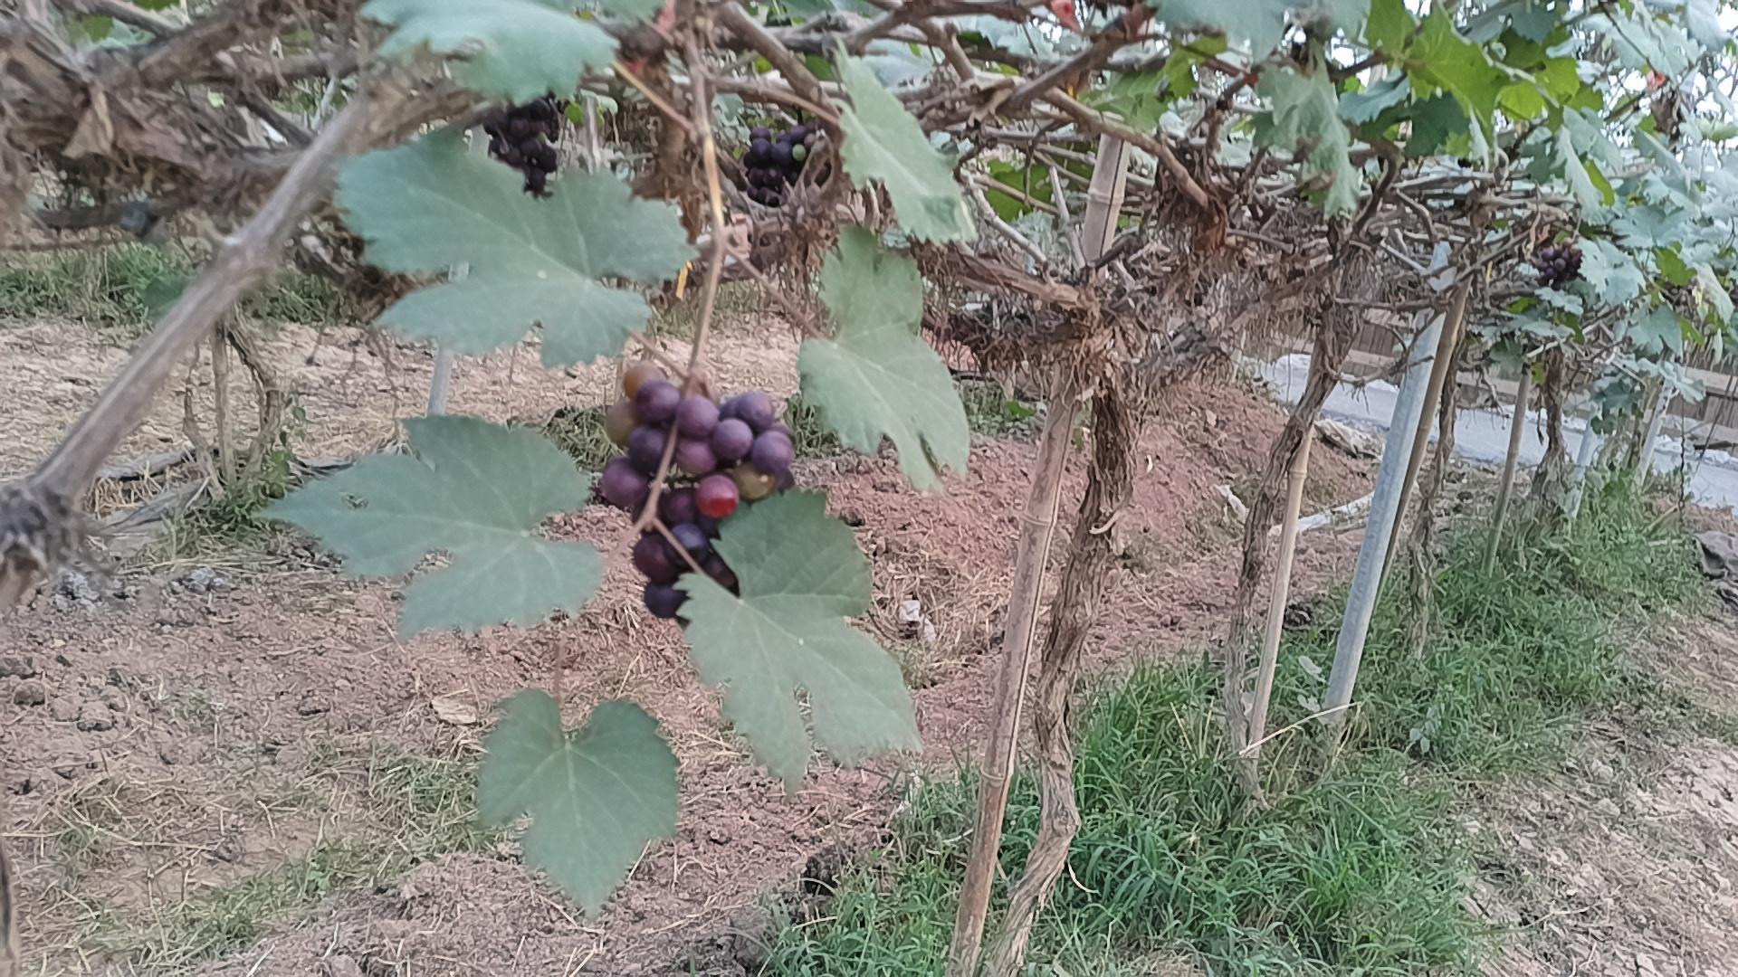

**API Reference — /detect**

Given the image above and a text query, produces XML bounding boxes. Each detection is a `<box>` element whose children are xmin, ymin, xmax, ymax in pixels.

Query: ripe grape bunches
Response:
<box><xmin>481</xmin><ymin>92</ymin><xmax>565</xmax><ymax>196</ymax></box>
<box><xmin>741</xmin><ymin>124</ymin><xmax>825</xmax><ymax>207</ymax></box>
<box><xmin>599</xmin><ymin>364</ymin><xmax>794</xmax><ymax>615</ymax></box>
<box><xmin>1531</xmin><ymin>238</ymin><xmax>1582</xmax><ymax>290</ymax></box>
